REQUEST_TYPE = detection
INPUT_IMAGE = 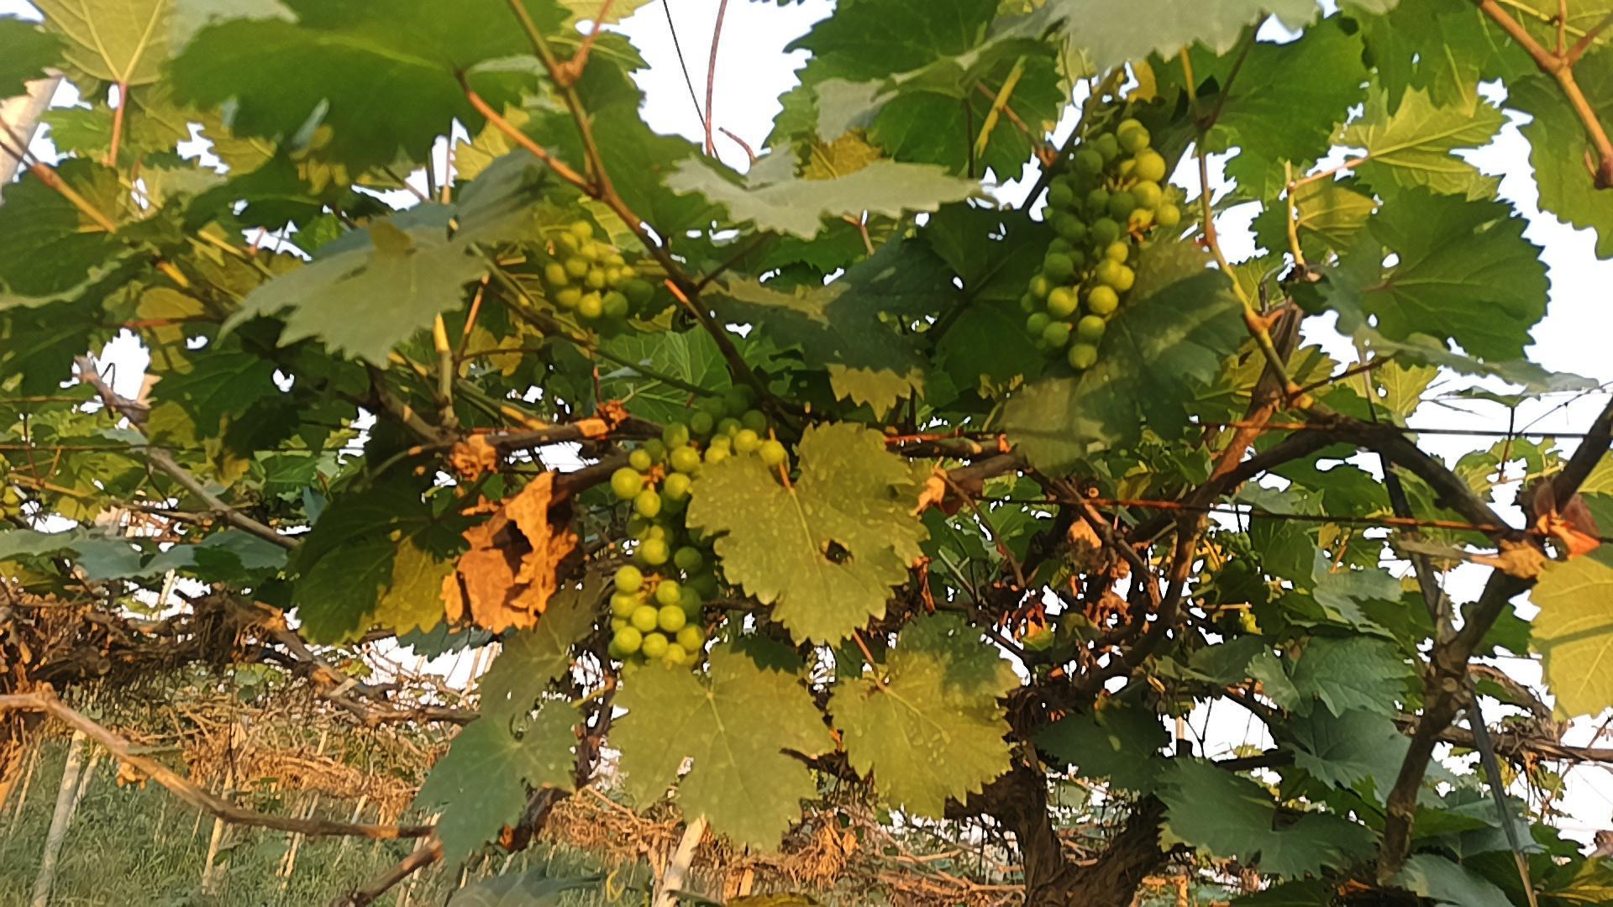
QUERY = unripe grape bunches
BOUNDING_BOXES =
[609,396,785,667]
[526,217,662,337]
[1021,86,1187,369]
